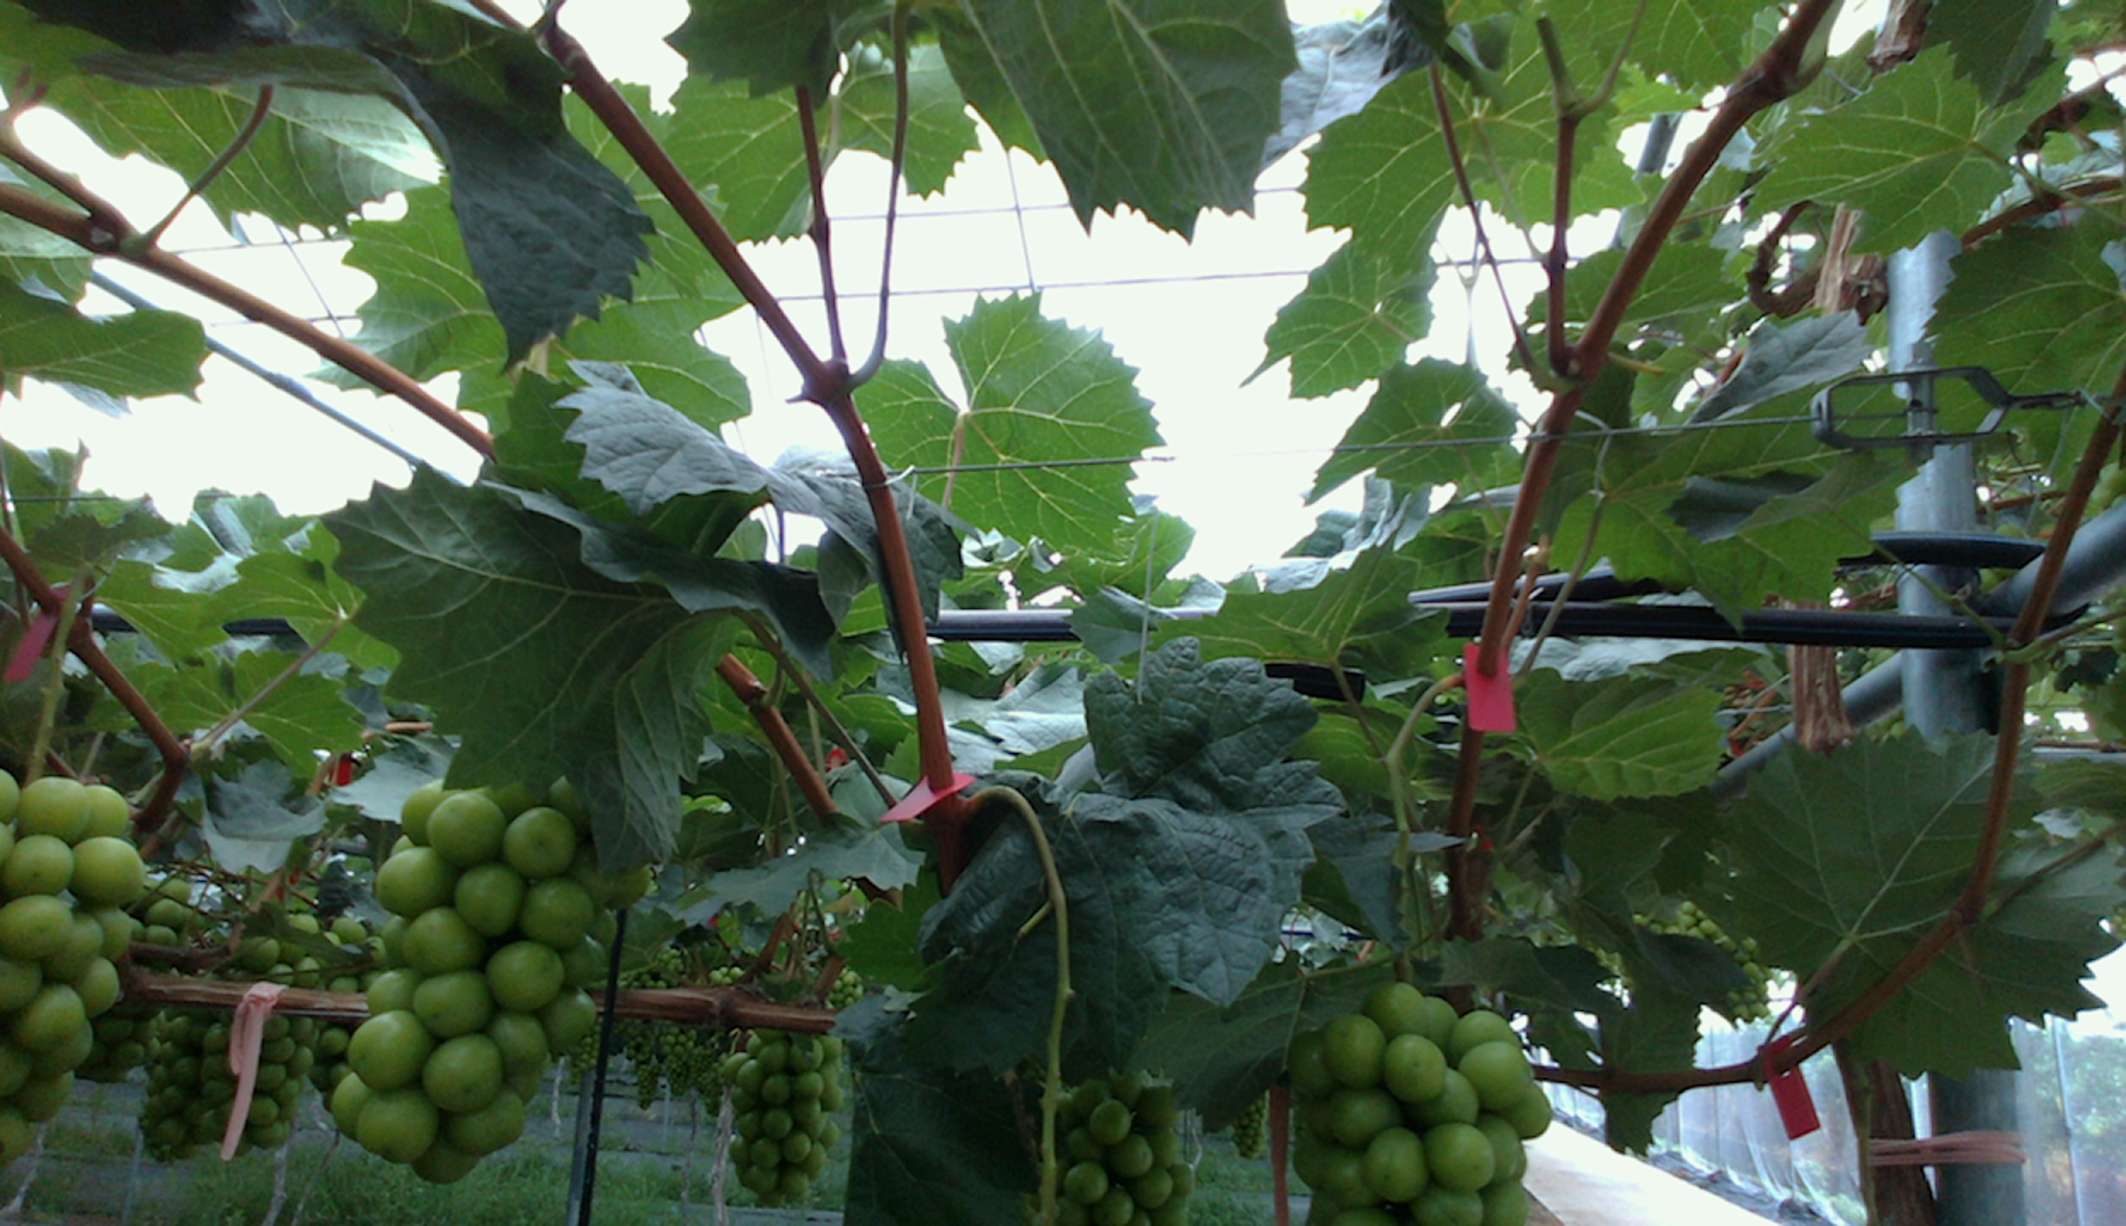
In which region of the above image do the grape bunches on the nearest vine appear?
[327,776,651,1187]
[0,770,145,1161]
[1288,979,1552,1224]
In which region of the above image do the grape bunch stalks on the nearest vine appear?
[1383,671,1467,983]
[22,560,90,787]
